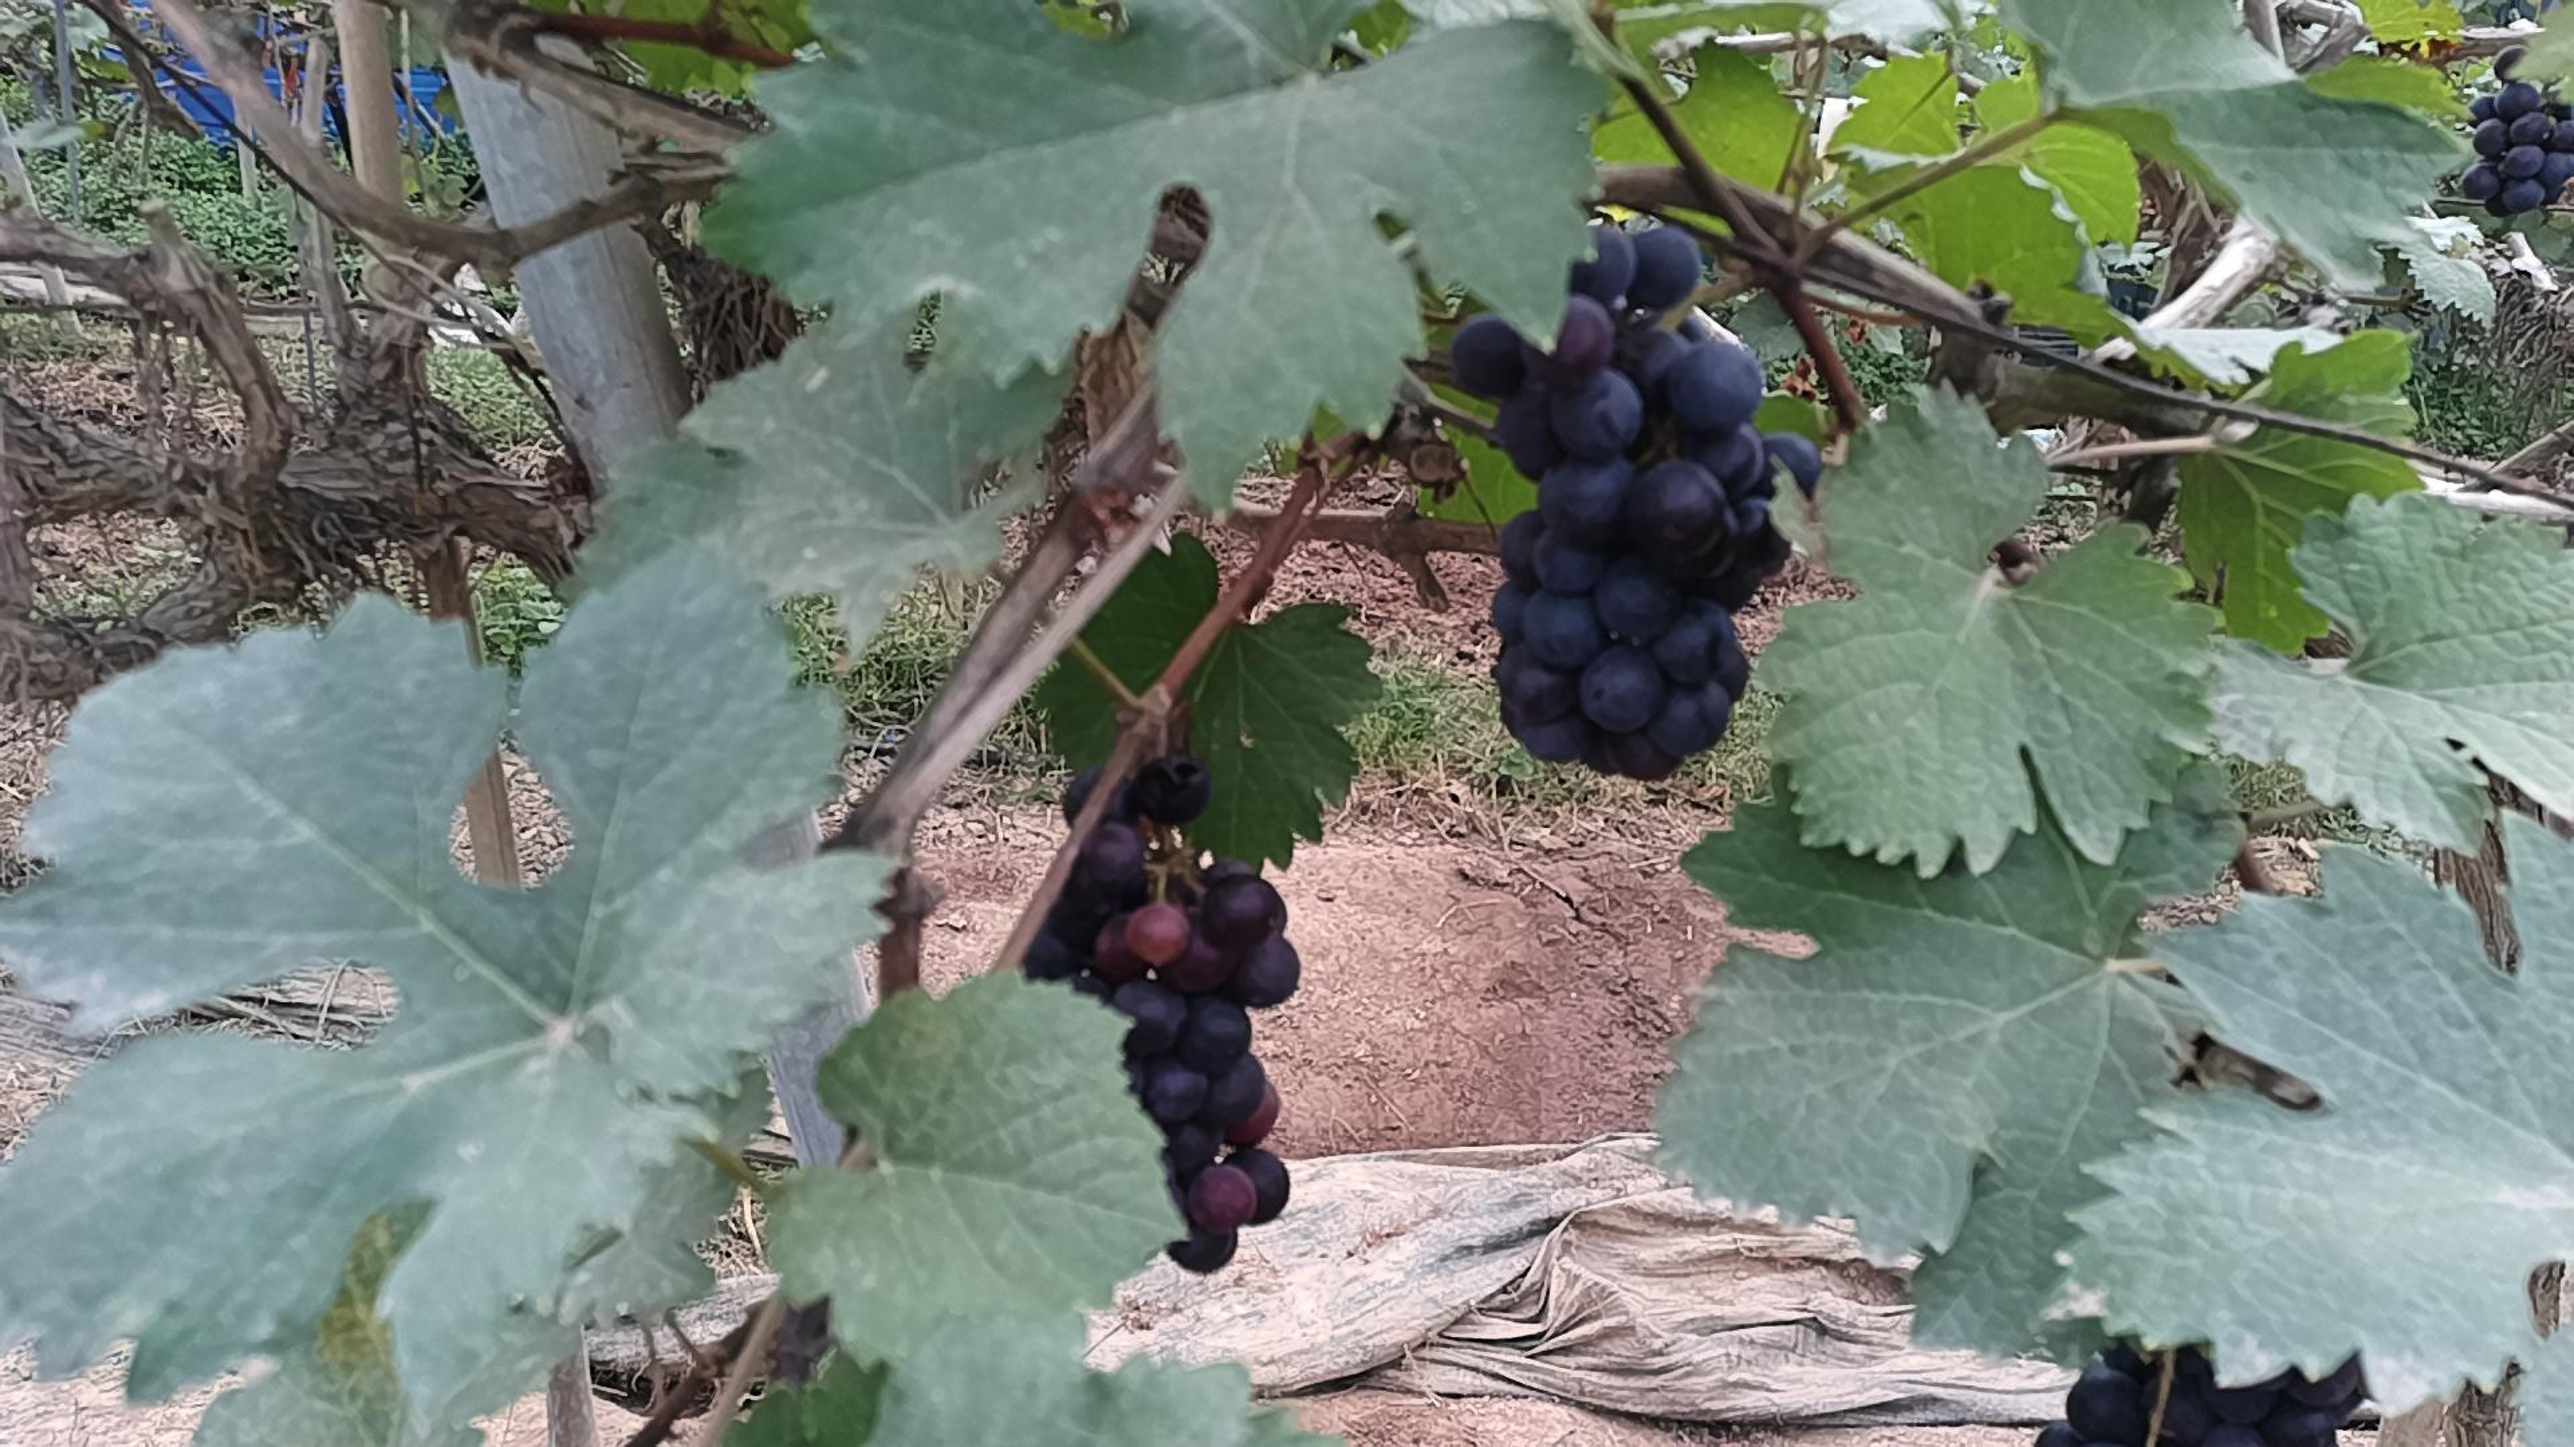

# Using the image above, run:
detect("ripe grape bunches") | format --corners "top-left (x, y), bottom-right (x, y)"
top-left (1023, 756), bottom-right (1300, 1271)
top-left (2459, 48), bottom-right (2573, 218)
top-left (1449, 224), bottom-right (1821, 778)
top-left (2035, 1340), bottom-right (2364, 1446)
